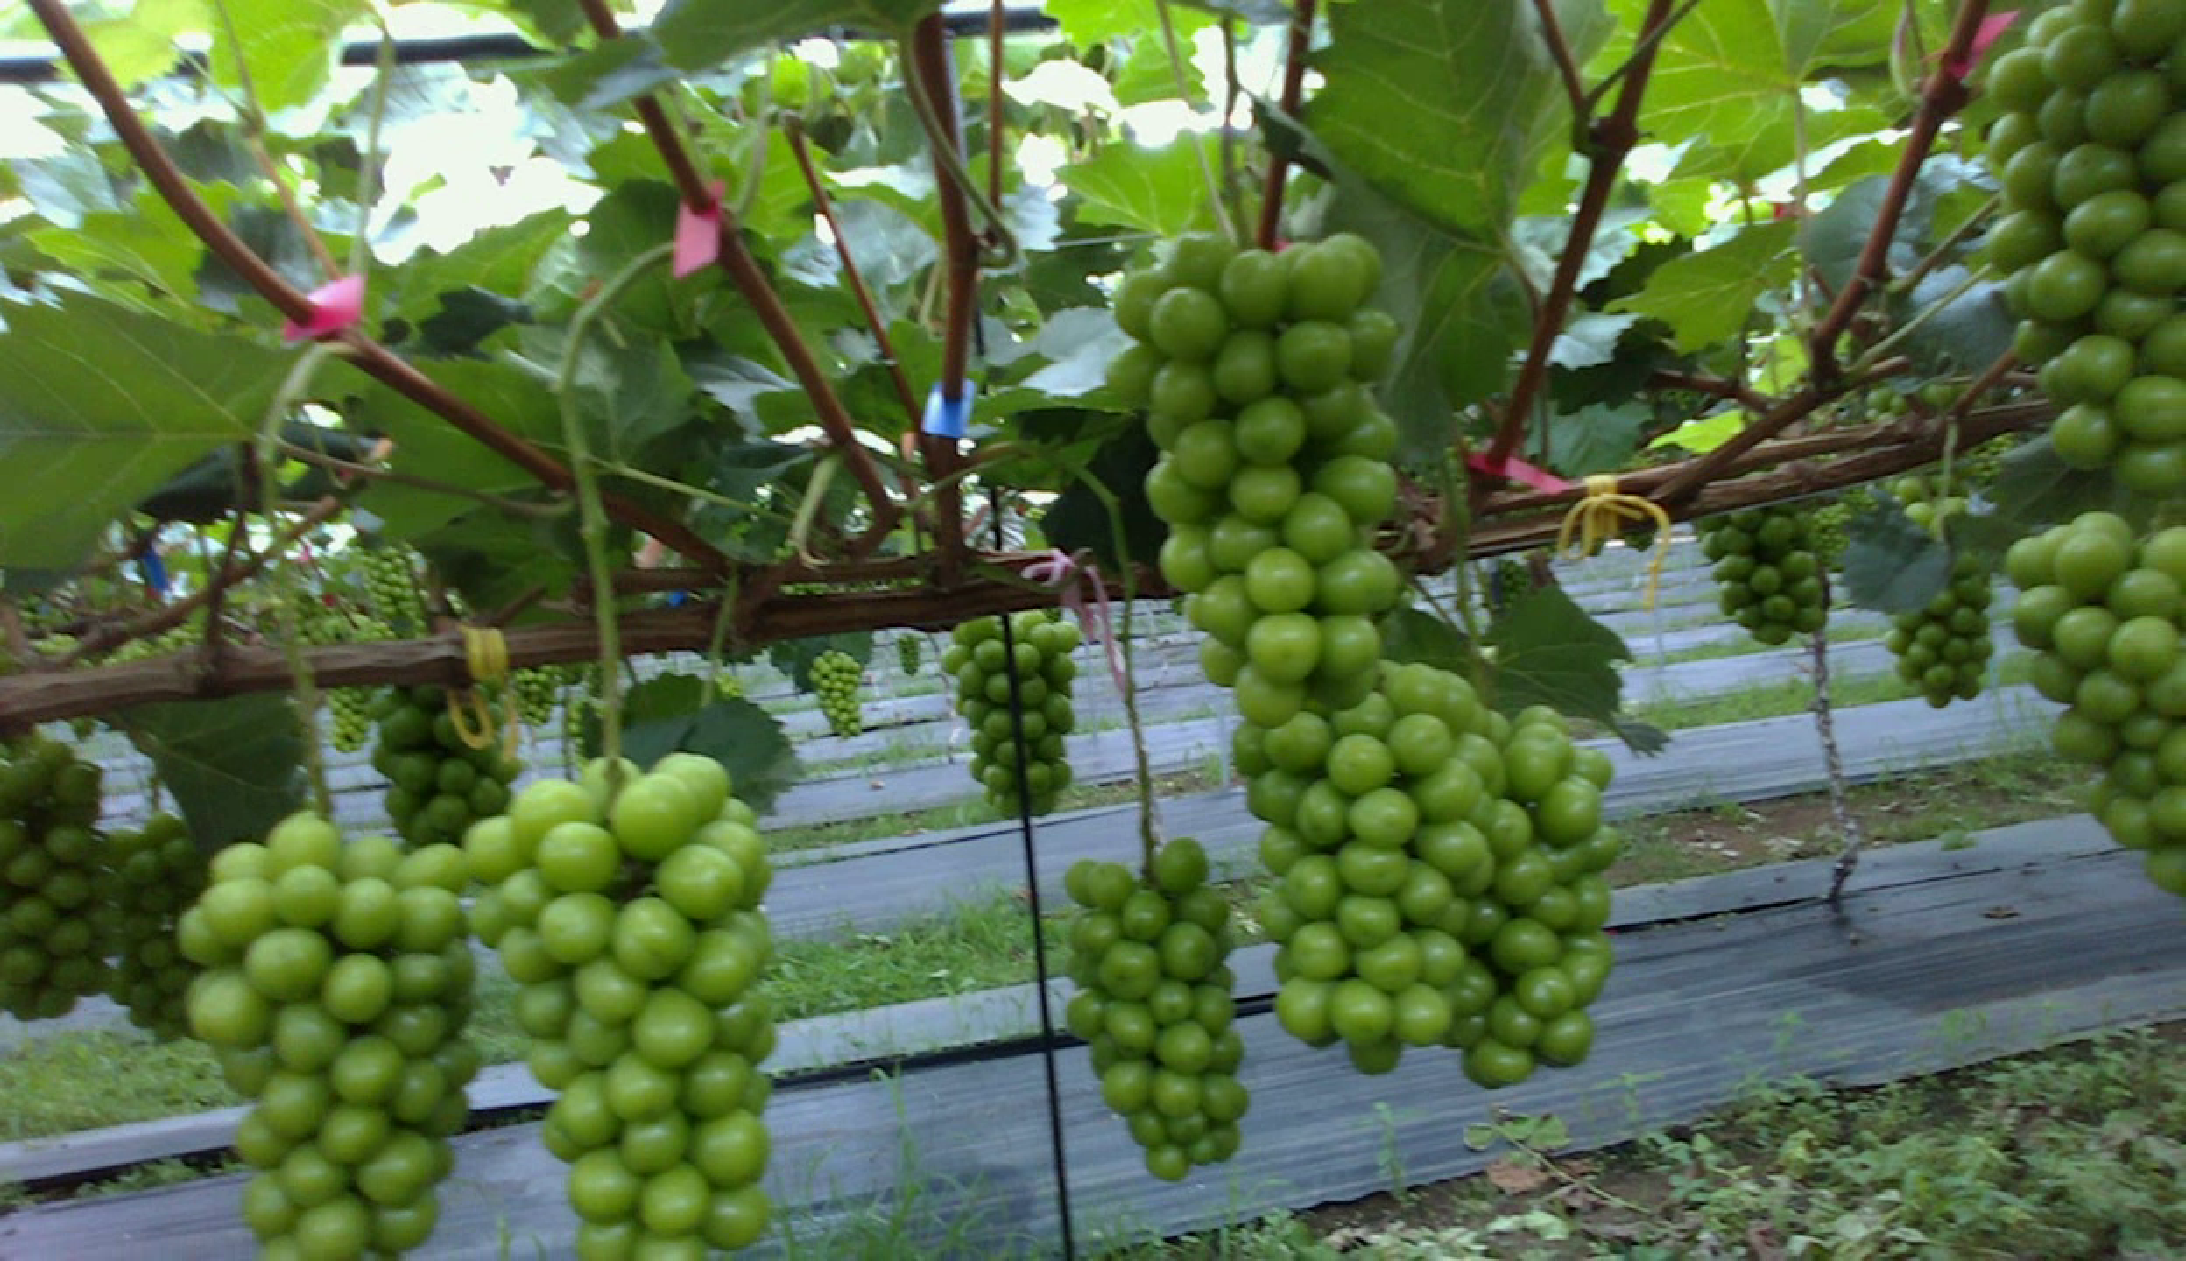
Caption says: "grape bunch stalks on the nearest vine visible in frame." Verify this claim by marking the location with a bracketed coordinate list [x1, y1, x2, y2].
[1221, 19, 1252, 247]
[981, 443, 1156, 890]
[1440, 462, 1492, 704]
[557, 242, 671, 827]
[259, 349, 331, 820]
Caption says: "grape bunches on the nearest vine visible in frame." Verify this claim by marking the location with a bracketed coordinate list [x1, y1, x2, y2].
[1109, 233, 1400, 727]
[468, 753, 779, 1259]
[1450, 702, 1620, 1088]
[1985, 0, 2184, 490]
[179, 811, 478, 1259]
[1063, 839, 1247, 1182]
[1237, 662, 1501, 1072]
[2007, 511, 2184, 895]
